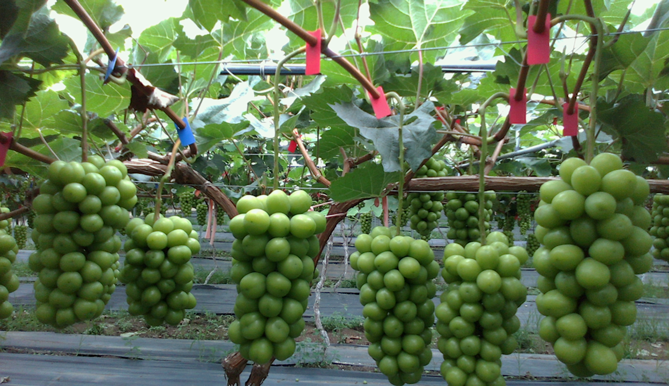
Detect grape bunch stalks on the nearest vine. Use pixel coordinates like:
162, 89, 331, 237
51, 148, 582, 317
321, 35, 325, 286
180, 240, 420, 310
274, 46, 306, 190
385, 92, 404, 236
154, 138, 181, 222
550, 14, 604, 165
478, 92, 509, 246
80, 50, 105, 162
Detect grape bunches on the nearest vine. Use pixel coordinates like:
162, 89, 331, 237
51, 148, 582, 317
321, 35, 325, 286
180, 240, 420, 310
350, 226, 439, 385
228, 189, 327, 365
28, 155, 137, 330
118, 213, 202, 326
532, 153, 653, 377
435, 232, 529, 385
